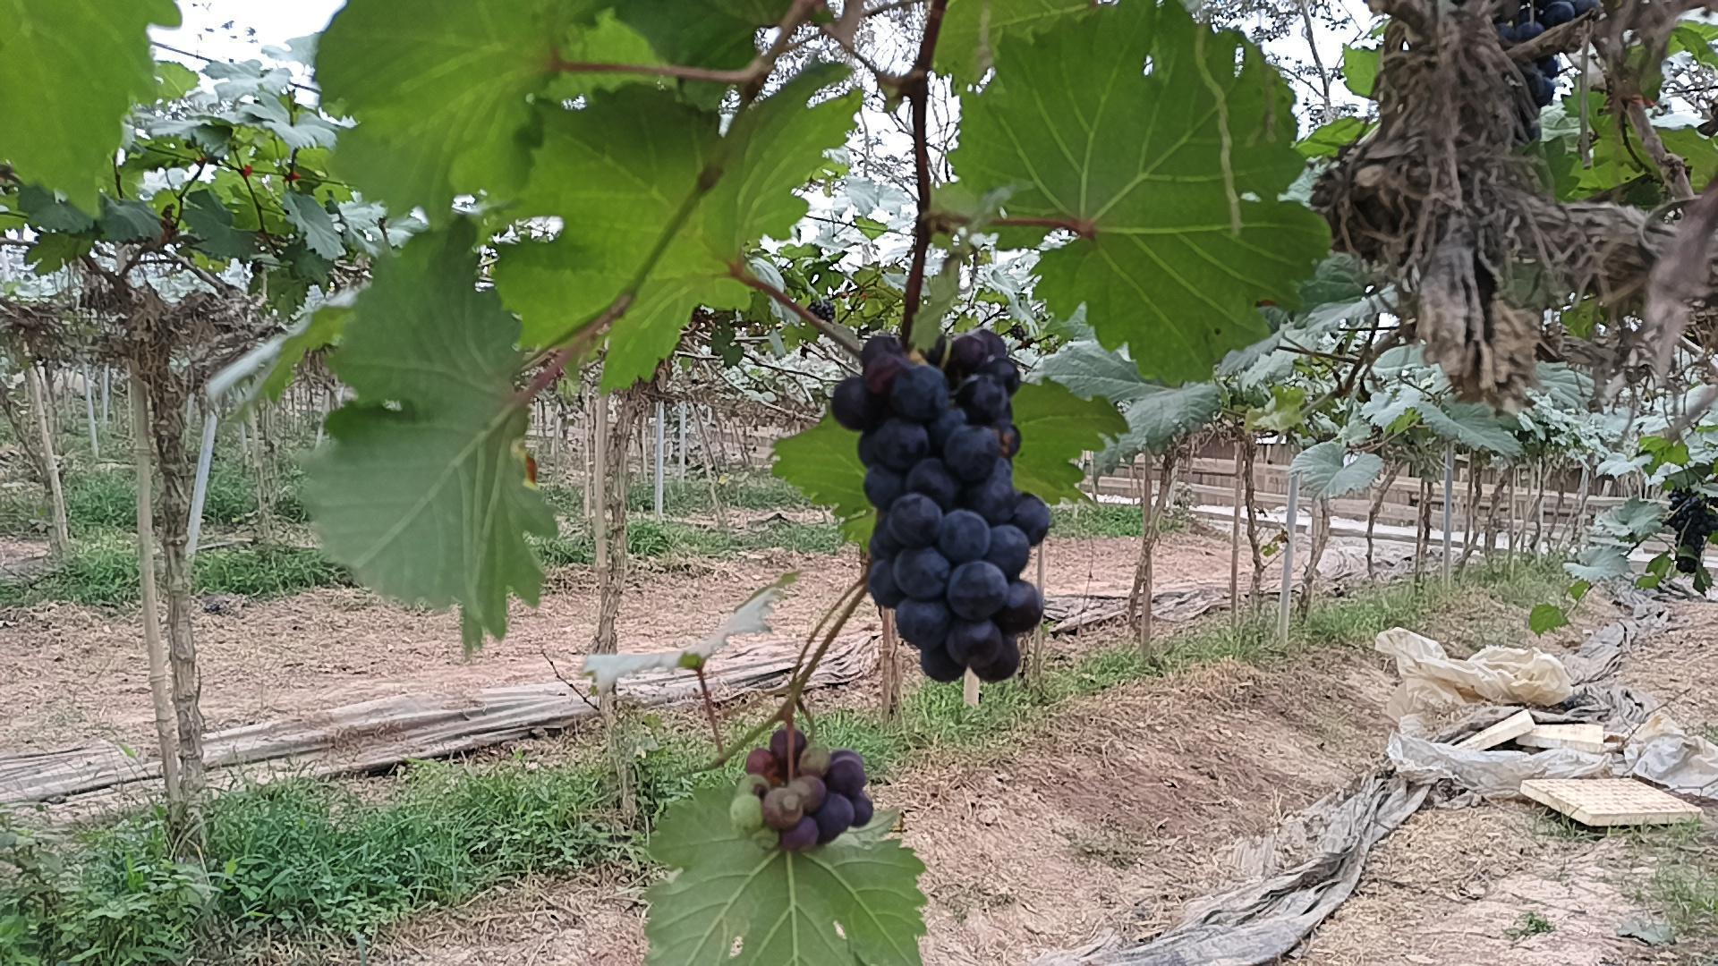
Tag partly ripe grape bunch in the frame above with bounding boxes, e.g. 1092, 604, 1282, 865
734, 725, 873, 851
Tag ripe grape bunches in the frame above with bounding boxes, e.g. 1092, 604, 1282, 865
832, 330, 1050, 682
1500, 3, 1598, 106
